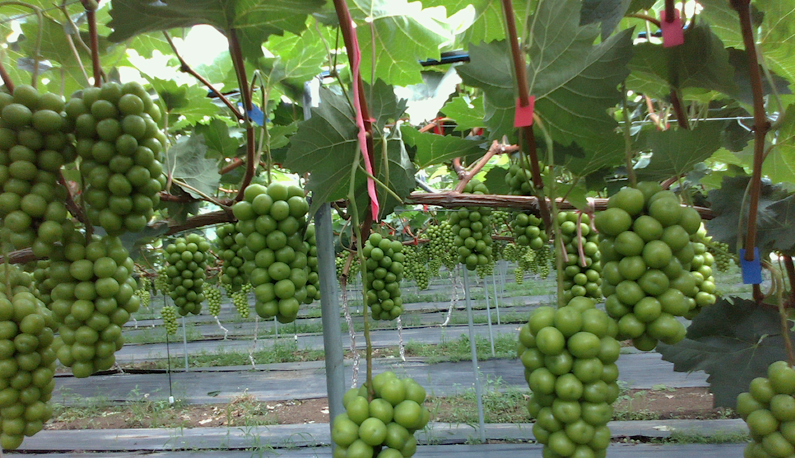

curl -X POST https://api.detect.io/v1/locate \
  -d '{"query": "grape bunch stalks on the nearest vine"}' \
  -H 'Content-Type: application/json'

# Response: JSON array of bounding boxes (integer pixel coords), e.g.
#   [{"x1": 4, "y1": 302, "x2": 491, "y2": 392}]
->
[
  {"x1": 248, "y1": 69, "x2": 272, "y2": 186},
  {"x1": 3, "y1": 241, "x2": 12, "y2": 303},
  {"x1": 757, "y1": 258, "x2": 794, "y2": 366},
  {"x1": 620, "y1": 82, "x2": 636, "y2": 188},
  {"x1": 1, "y1": 1, "x2": 43, "y2": 90},
  {"x1": 347, "y1": 138, "x2": 374, "y2": 401},
  {"x1": 533, "y1": 112, "x2": 563, "y2": 308}
]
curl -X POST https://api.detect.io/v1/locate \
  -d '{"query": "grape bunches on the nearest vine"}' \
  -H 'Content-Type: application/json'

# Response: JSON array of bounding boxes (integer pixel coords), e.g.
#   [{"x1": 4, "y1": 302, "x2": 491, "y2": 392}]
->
[
  {"x1": 233, "y1": 184, "x2": 310, "y2": 324},
  {"x1": 594, "y1": 182, "x2": 700, "y2": 350},
  {"x1": 517, "y1": 296, "x2": 620, "y2": 457},
  {"x1": 0, "y1": 83, "x2": 76, "y2": 256},
  {"x1": 736, "y1": 360, "x2": 793, "y2": 457},
  {"x1": 332, "y1": 370, "x2": 432, "y2": 457},
  {"x1": 64, "y1": 81, "x2": 167, "y2": 237},
  {"x1": 48, "y1": 230, "x2": 141, "y2": 378},
  {"x1": 0, "y1": 293, "x2": 59, "y2": 448}
]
